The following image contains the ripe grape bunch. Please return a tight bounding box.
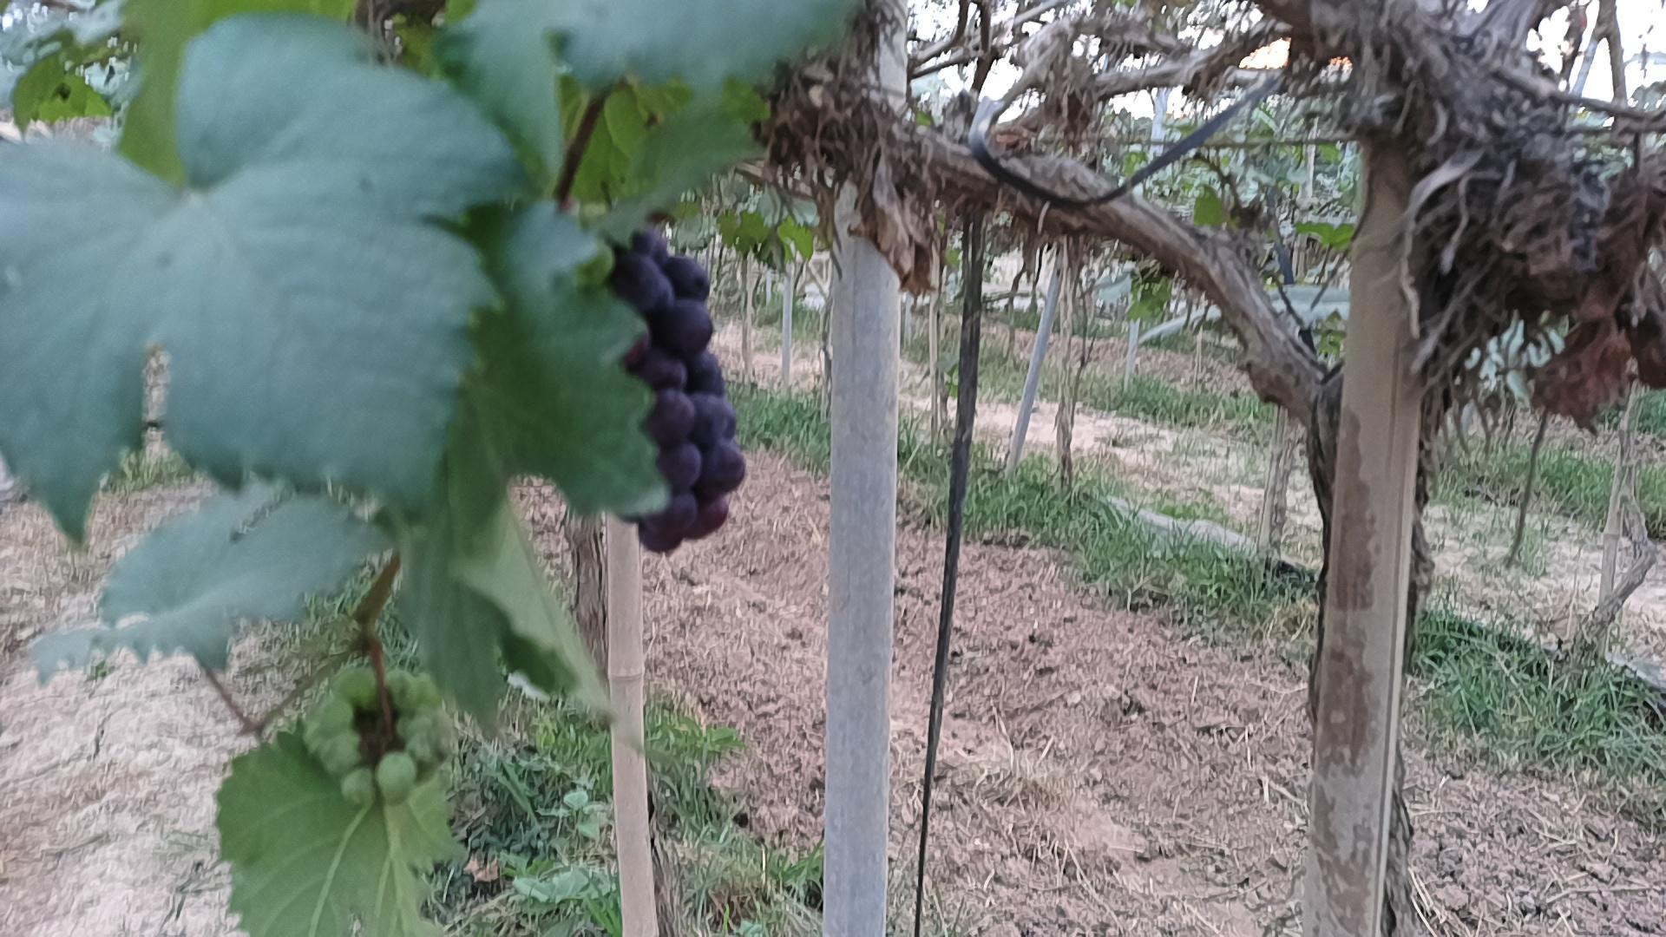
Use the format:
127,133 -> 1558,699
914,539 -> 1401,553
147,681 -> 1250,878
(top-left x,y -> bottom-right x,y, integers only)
609,227 -> 745,553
